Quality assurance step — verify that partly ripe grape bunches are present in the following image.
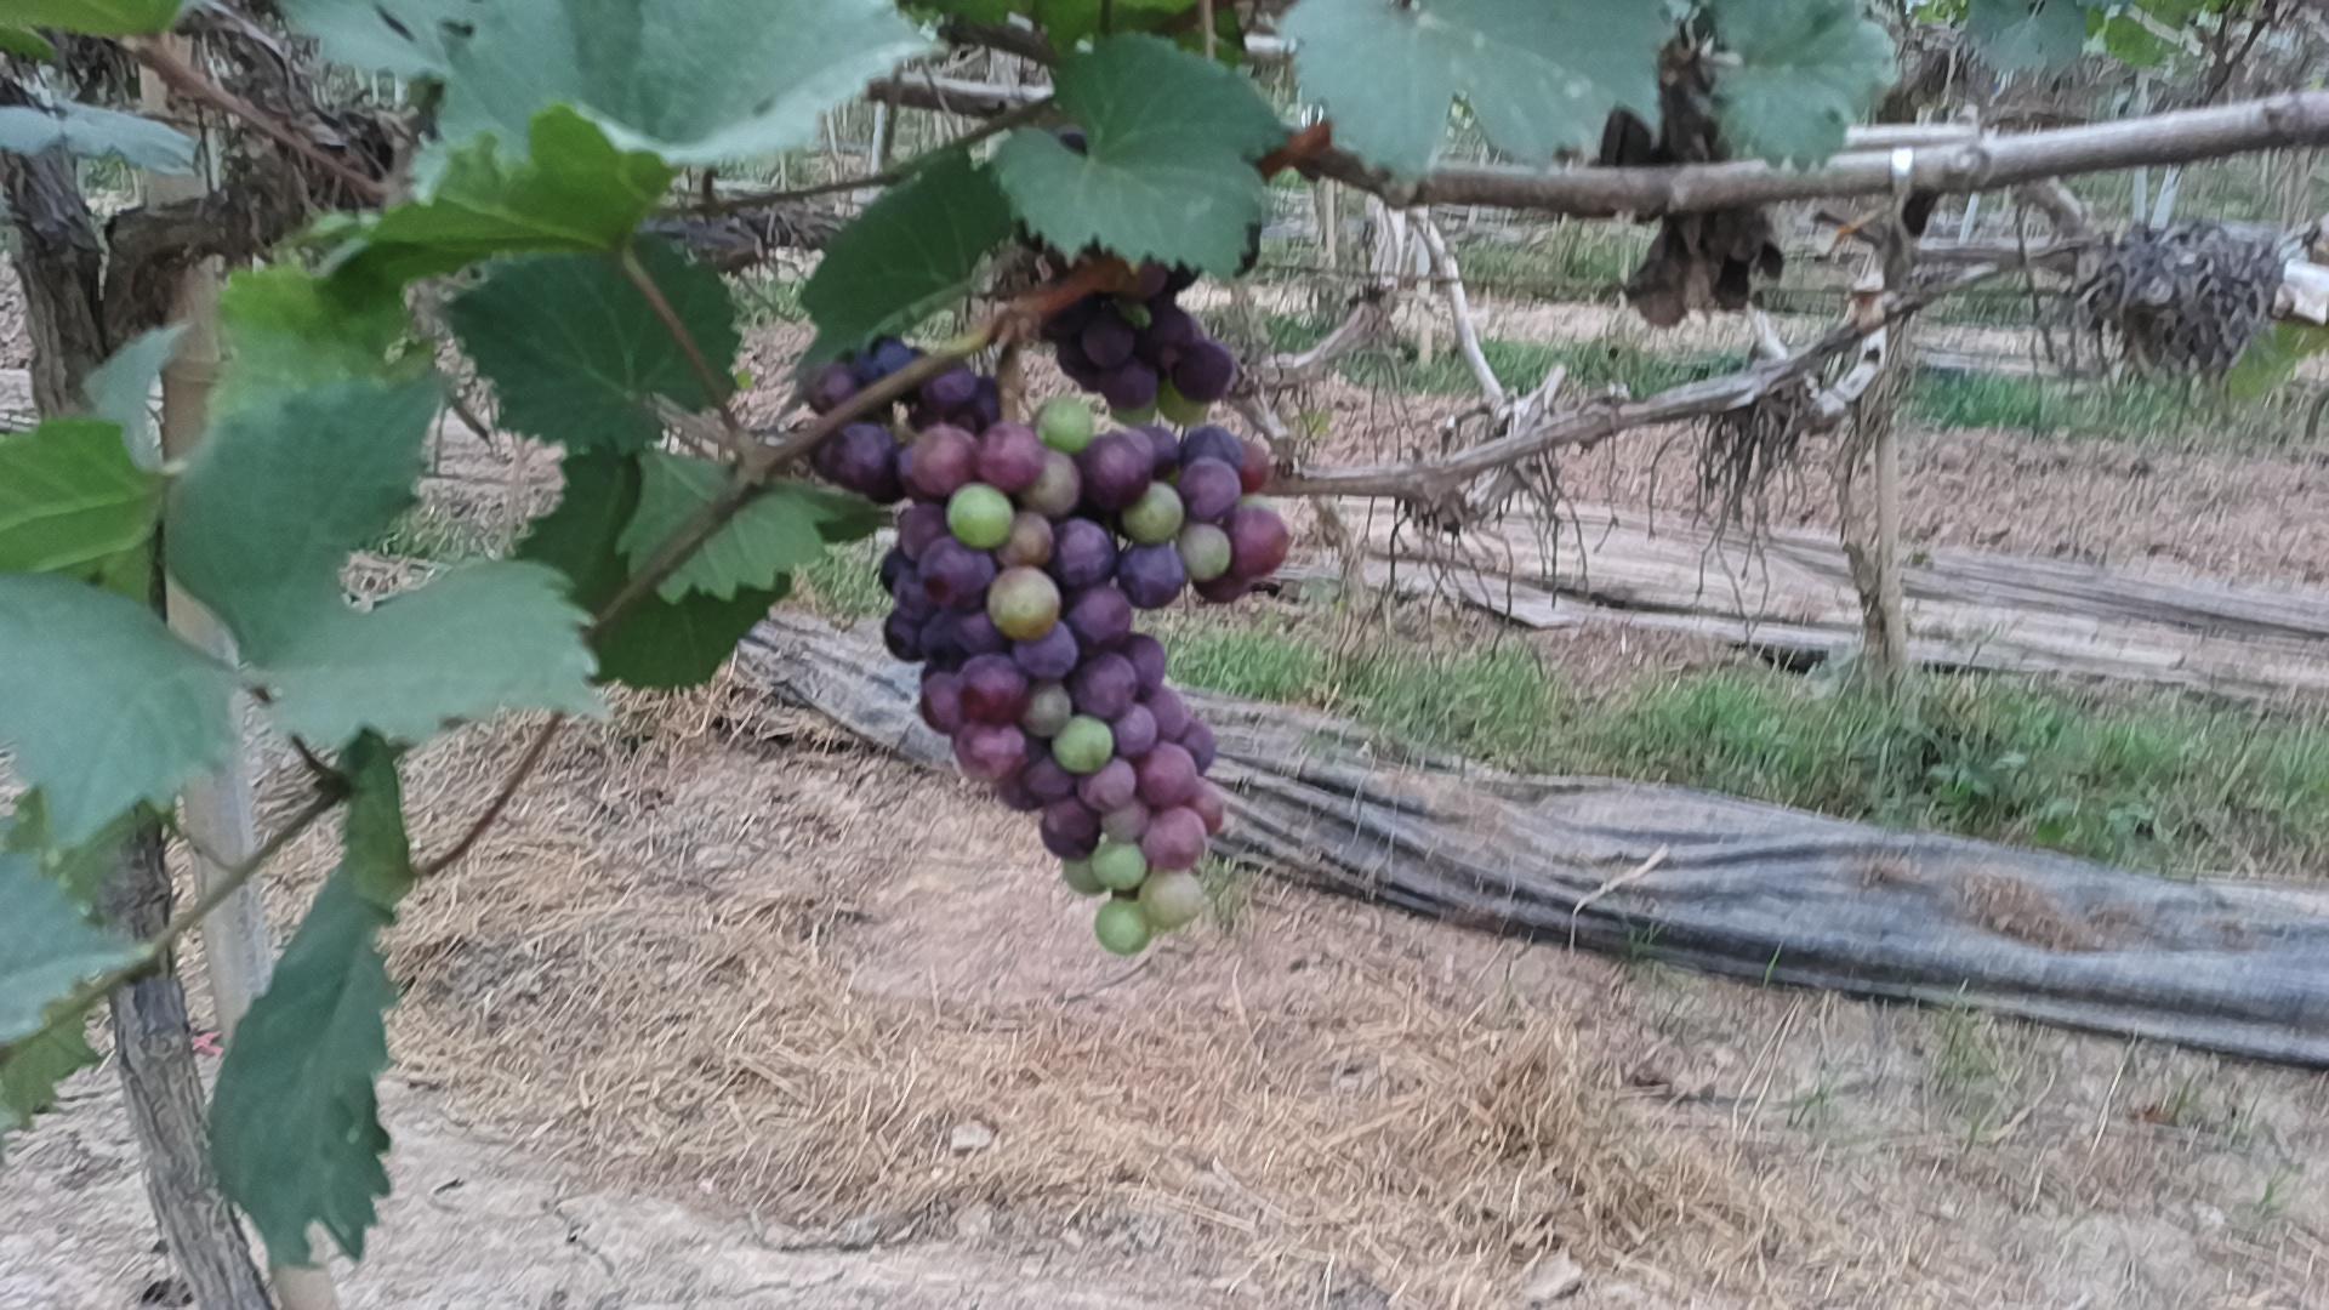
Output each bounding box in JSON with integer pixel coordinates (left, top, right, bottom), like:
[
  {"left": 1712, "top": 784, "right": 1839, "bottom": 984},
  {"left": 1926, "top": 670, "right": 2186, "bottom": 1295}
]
[
  {"left": 1006, "top": 240, "right": 1238, "bottom": 428},
  {"left": 801, "top": 335, "right": 1288, "bottom": 955}
]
